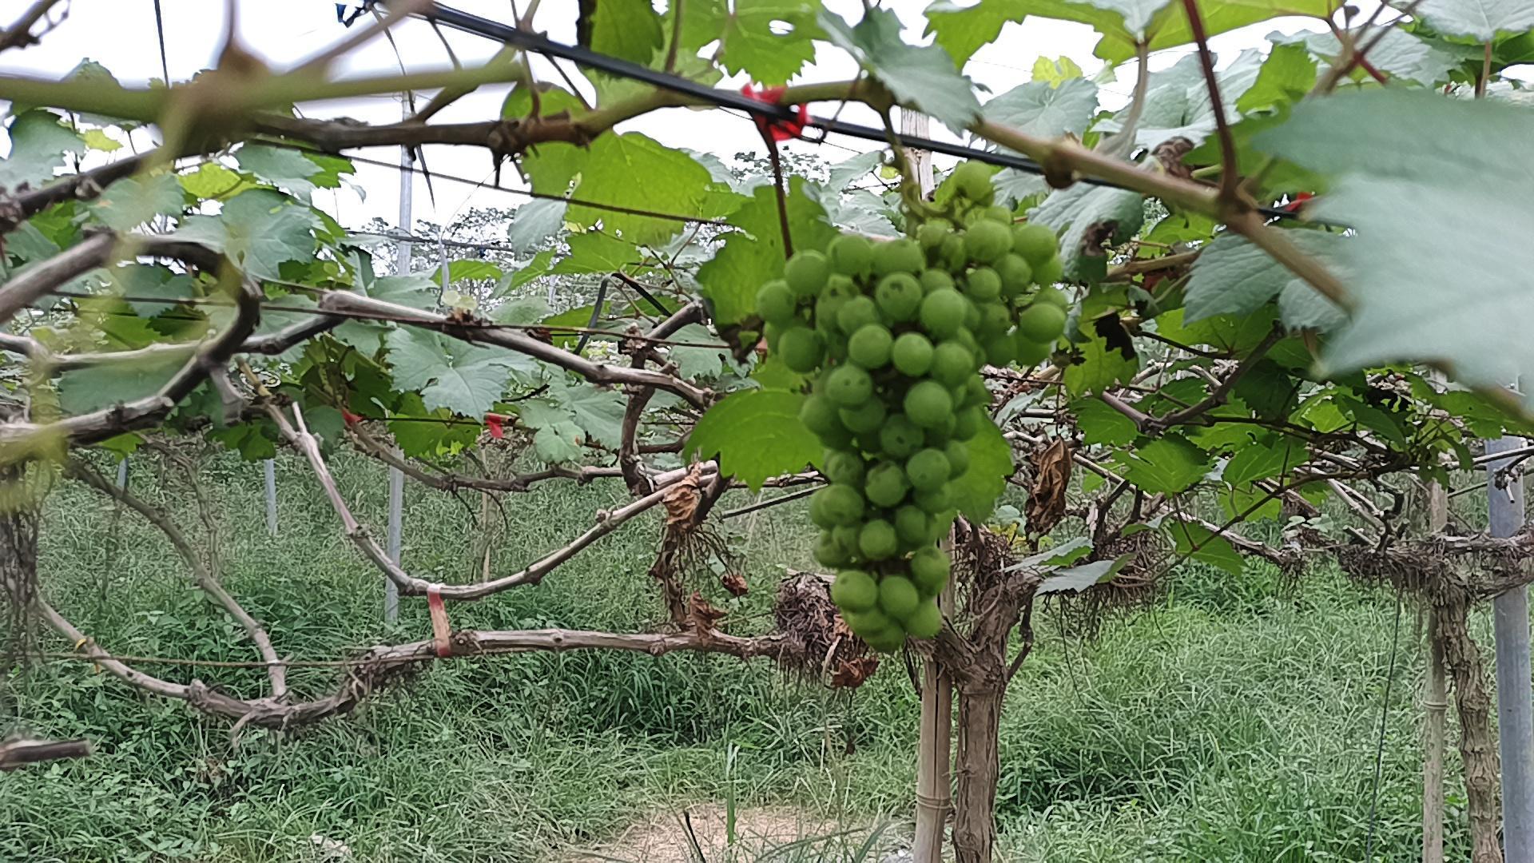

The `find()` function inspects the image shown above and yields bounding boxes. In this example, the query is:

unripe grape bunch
[757,161,1063,653]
